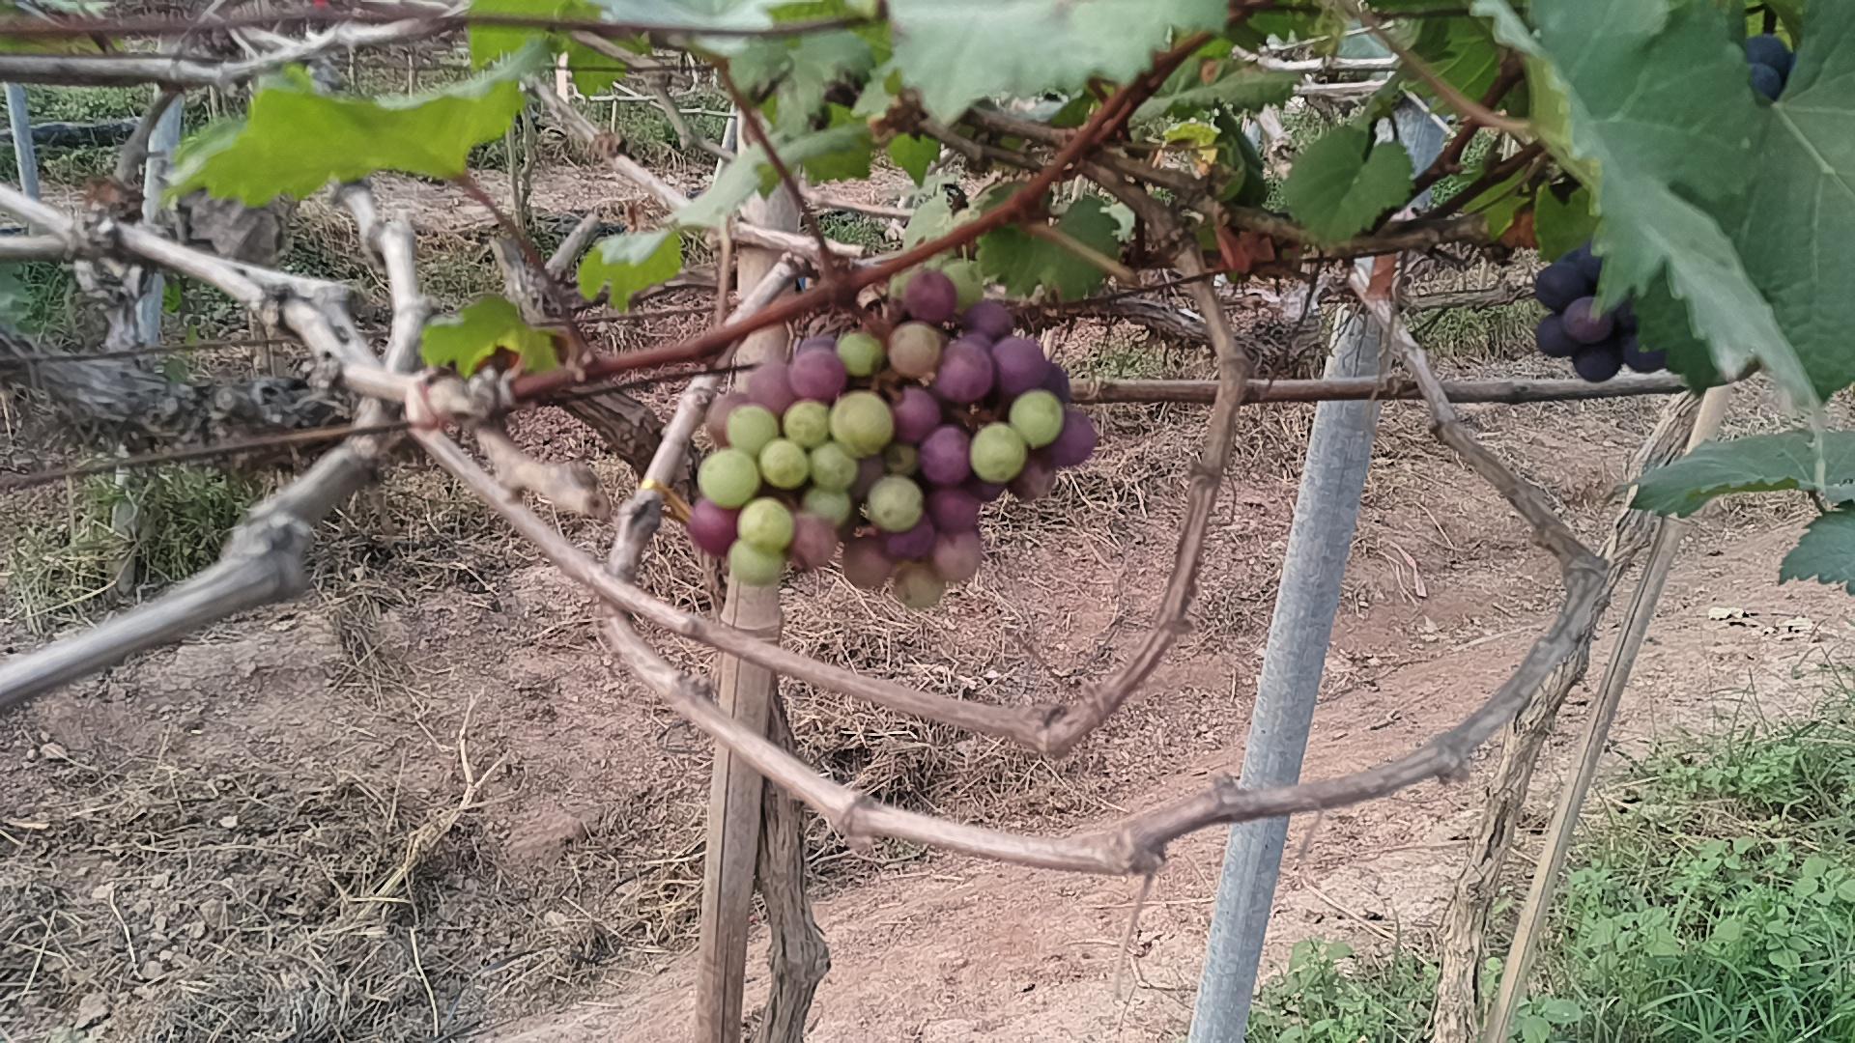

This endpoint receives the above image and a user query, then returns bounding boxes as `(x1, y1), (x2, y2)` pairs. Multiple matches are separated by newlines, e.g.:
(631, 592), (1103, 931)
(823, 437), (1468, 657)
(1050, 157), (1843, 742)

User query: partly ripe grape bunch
(691, 259), (1097, 607)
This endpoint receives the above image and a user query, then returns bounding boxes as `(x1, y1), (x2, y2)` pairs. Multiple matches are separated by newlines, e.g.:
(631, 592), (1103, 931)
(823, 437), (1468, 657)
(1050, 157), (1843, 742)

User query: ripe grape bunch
(1531, 33), (1797, 389)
